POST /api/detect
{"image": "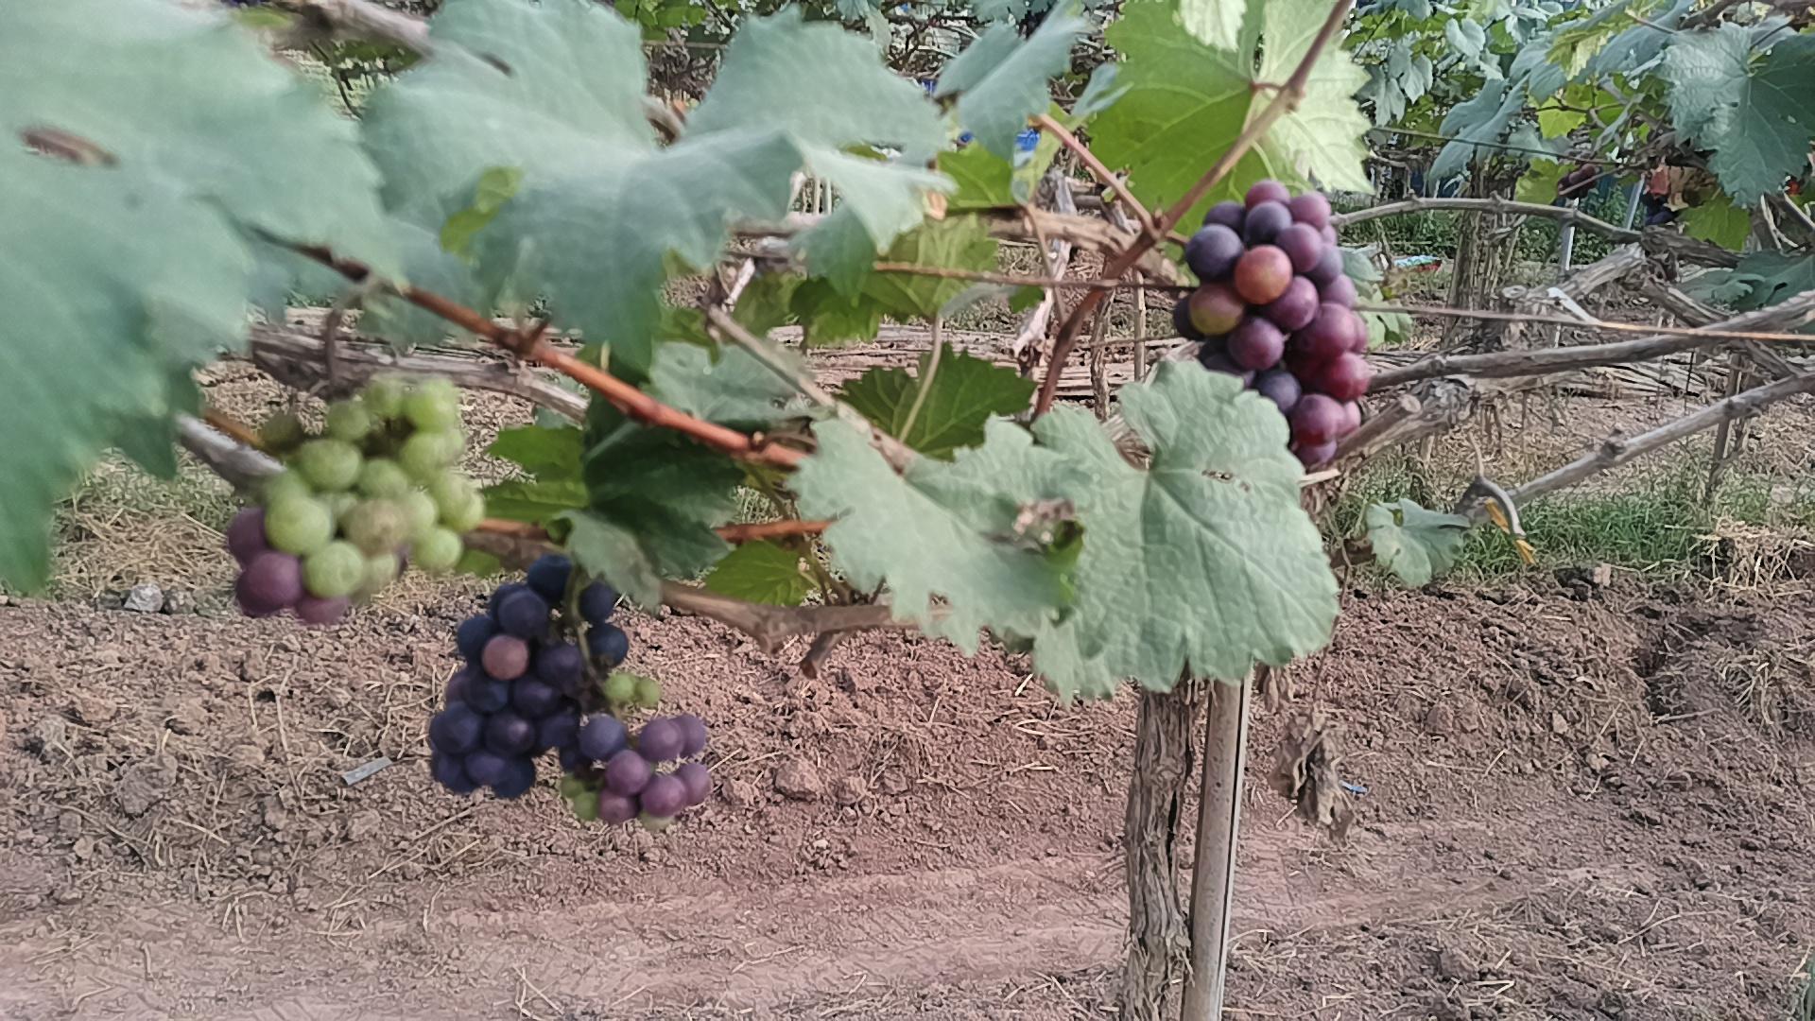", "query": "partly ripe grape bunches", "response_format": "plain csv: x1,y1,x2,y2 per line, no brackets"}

228,380,484,624
428,556,709,827
1175,181,1370,469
